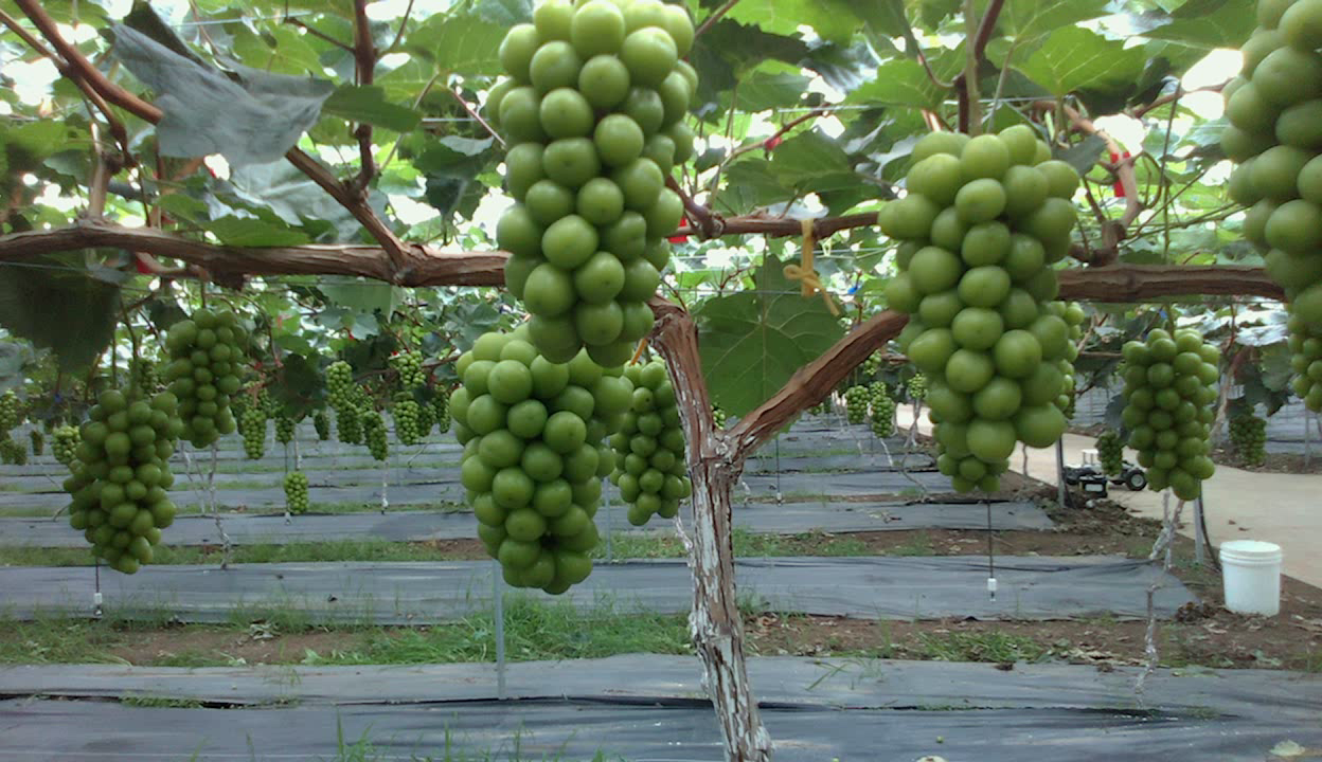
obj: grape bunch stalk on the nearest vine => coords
[965,2,979,139]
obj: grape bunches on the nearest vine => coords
[485,0,698,369]
[1220,0,1320,337]
[449,322,631,594]
[877,125,1078,461]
